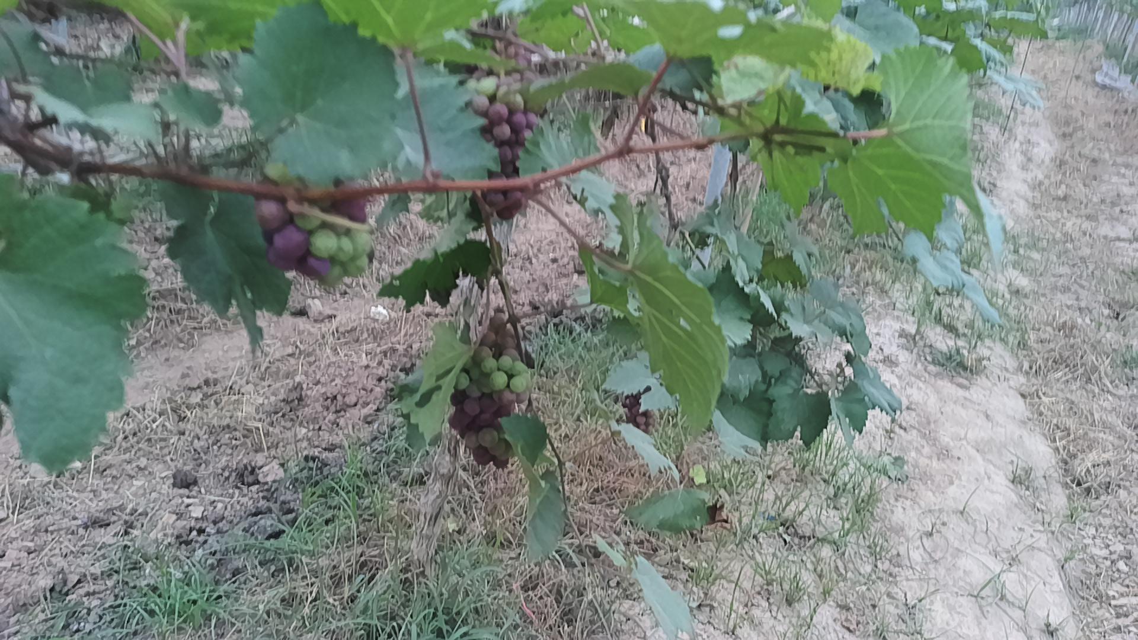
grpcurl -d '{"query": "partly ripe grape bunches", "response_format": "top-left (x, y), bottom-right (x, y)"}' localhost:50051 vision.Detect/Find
top-left (255, 158), bottom-right (372, 286)
top-left (467, 67), bottom-right (538, 221)
top-left (449, 309), bottom-right (530, 468)
top-left (621, 386), bottom-right (657, 434)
